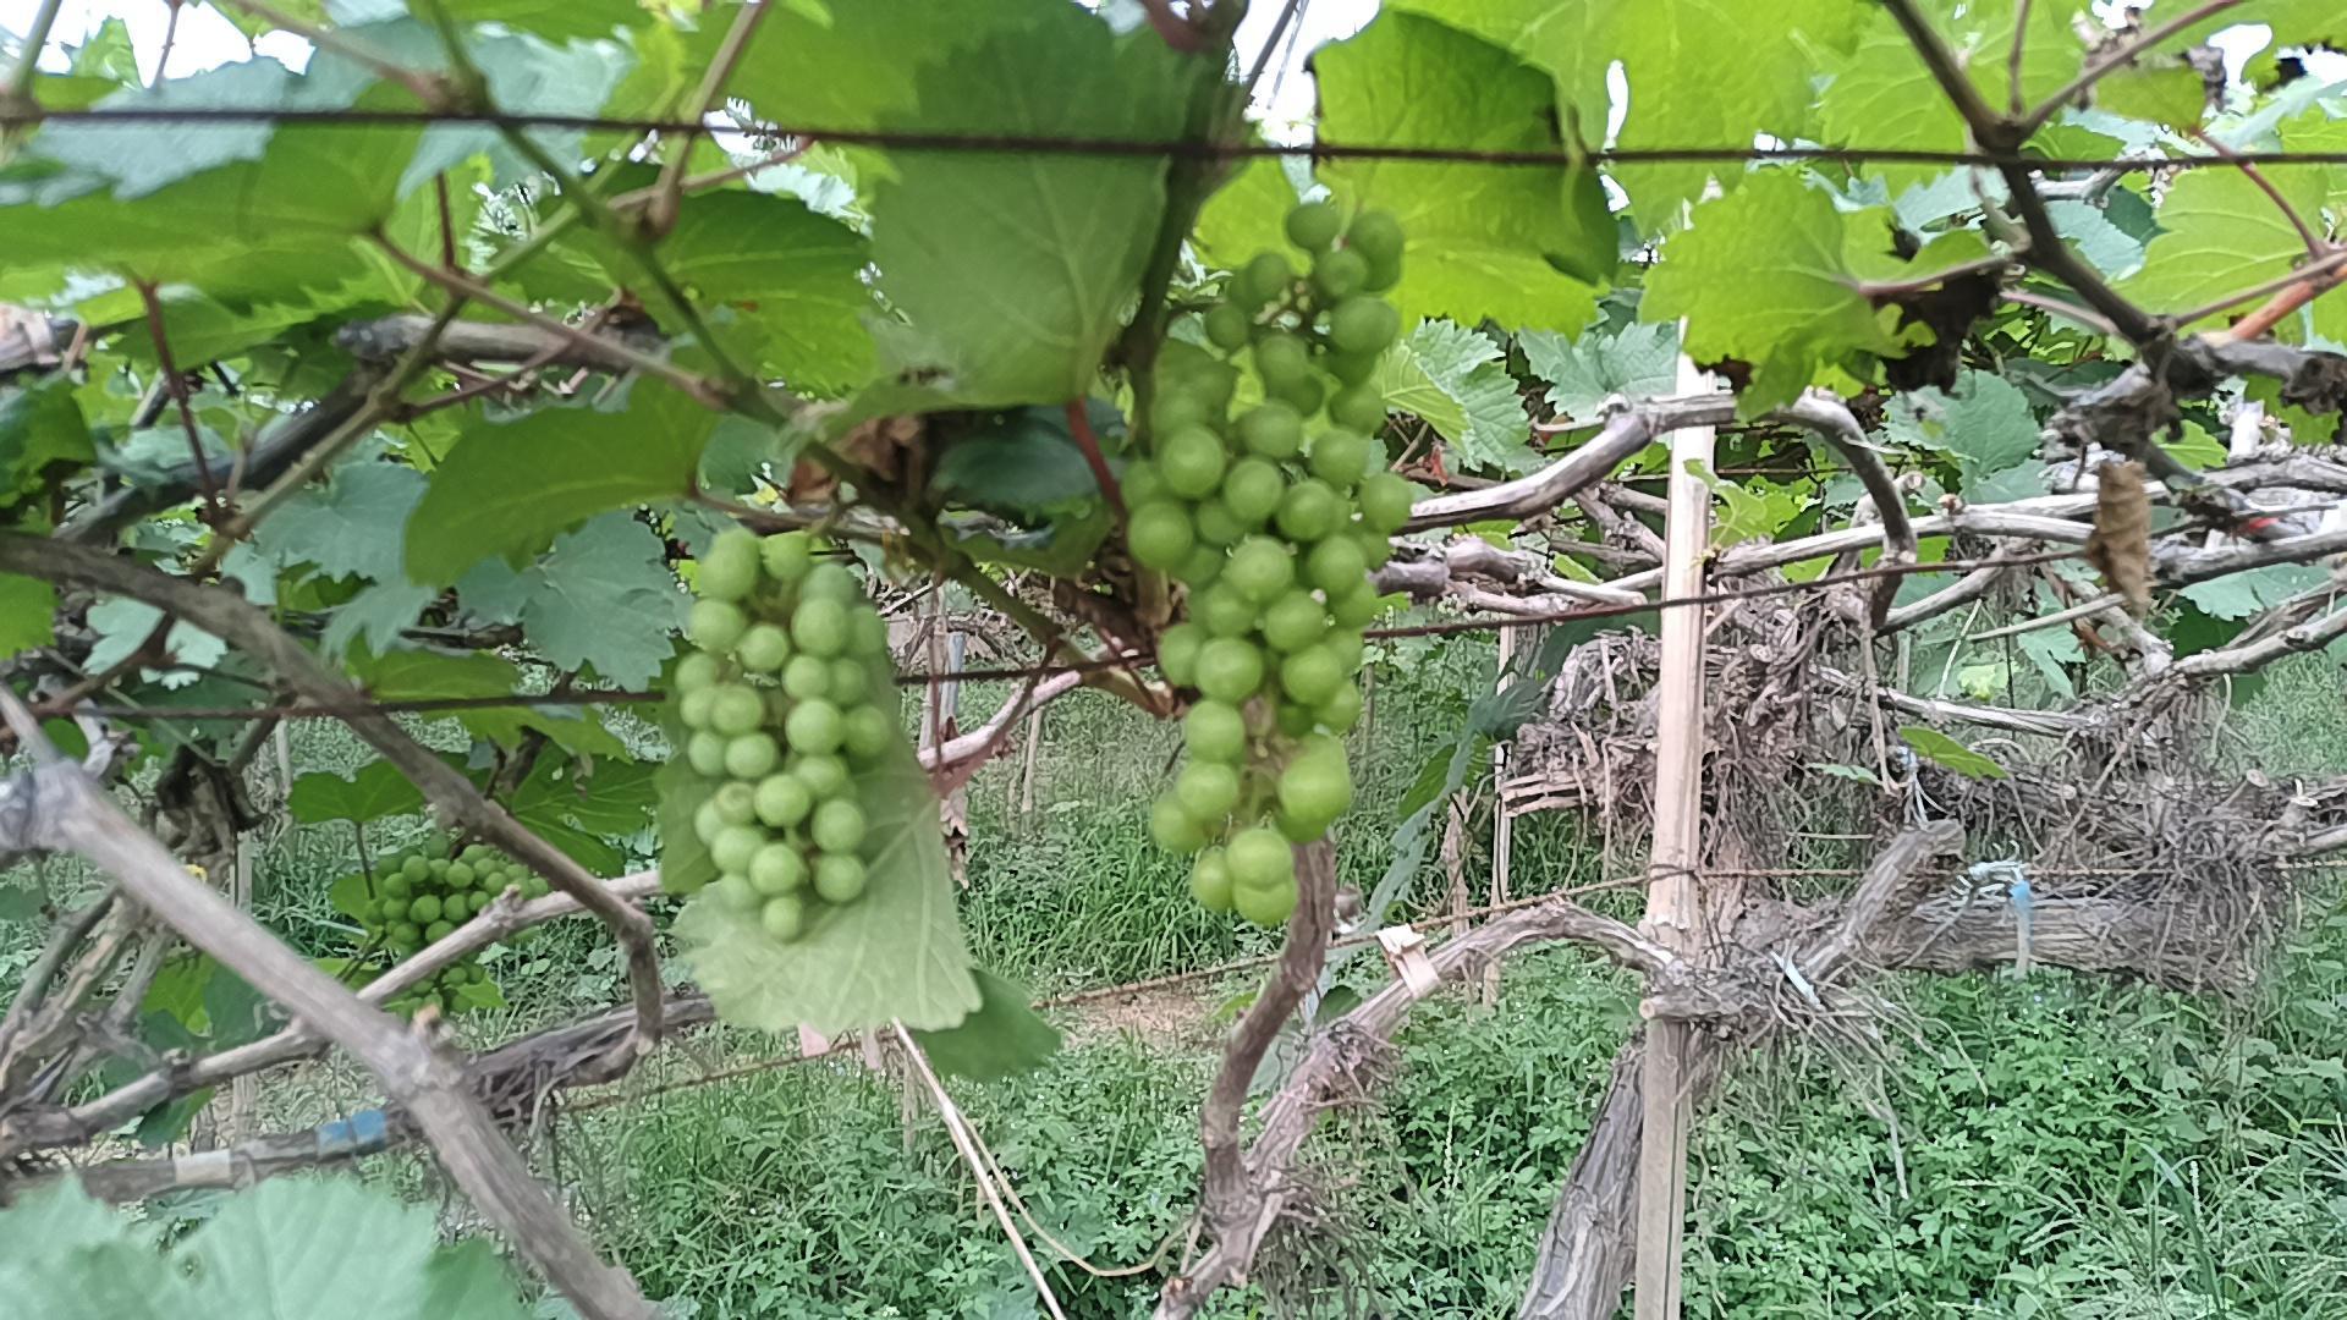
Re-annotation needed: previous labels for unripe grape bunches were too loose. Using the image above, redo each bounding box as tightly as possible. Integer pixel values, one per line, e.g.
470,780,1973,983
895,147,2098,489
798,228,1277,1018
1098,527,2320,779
1129,202,1412,925
363,845,549,1014
674,528,895,942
